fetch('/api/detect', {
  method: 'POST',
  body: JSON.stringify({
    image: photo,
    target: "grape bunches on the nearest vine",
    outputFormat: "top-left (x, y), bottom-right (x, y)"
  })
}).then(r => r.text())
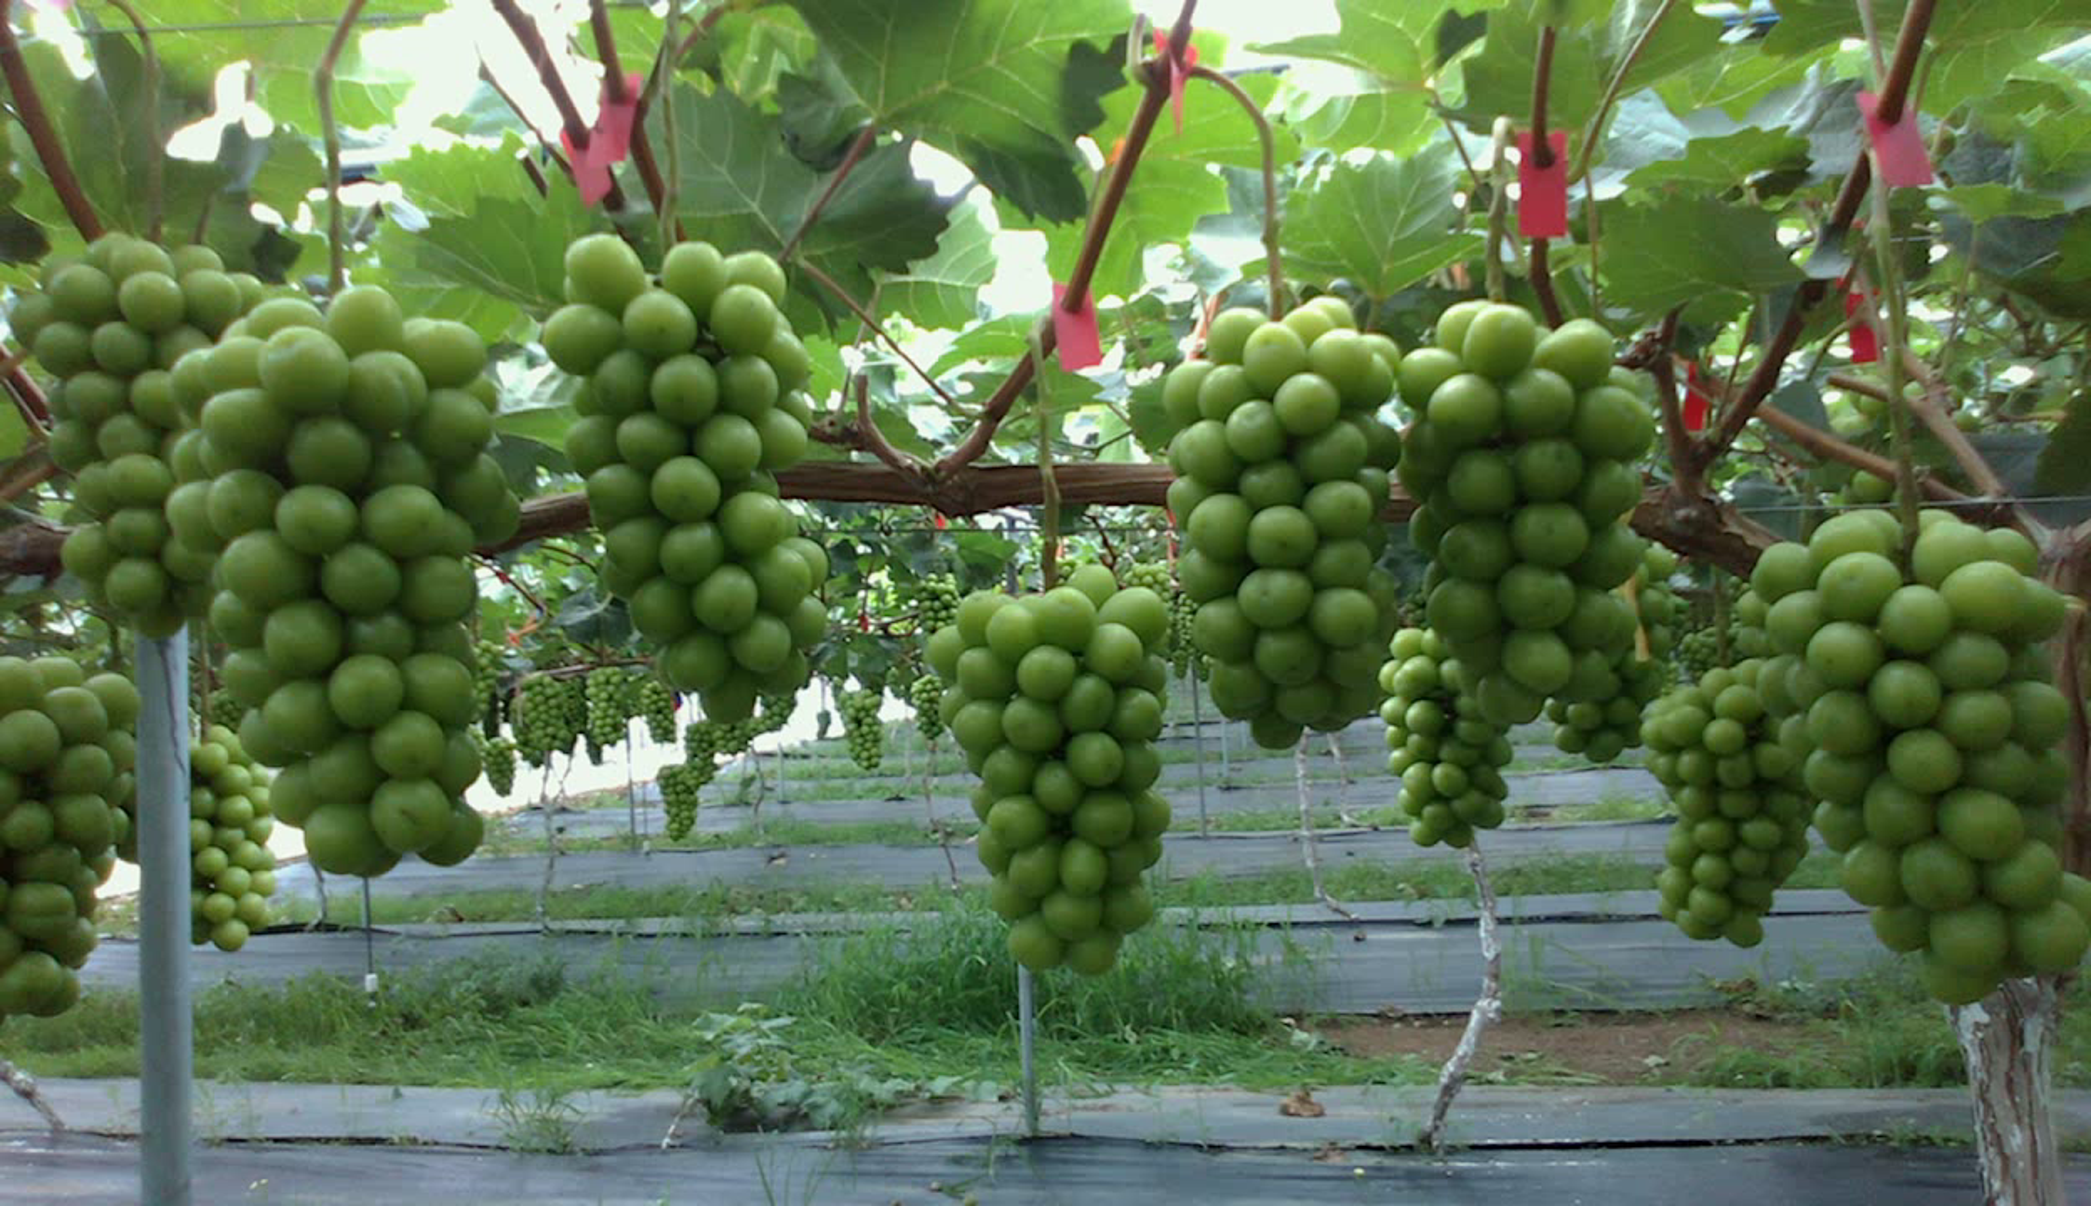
top-left (925, 564), bottom-right (1168, 977)
top-left (1394, 300), bottom-right (1660, 724)
top-left (536, 234), bottom-right (828, 729)
top-left (8, 231), bottom-right (270, 643)
top-left (1163, 295), bottom-right (1406, 749)
top-left (168, 288), bottom-right (519, 876)
top-left (1749, 506), bottom-right (2088, 1008)
top-left (2, 653), bottom-right (136, 1025)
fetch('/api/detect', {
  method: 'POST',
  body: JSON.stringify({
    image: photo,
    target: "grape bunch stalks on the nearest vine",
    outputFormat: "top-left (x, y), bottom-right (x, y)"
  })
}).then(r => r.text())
top-left (662, 0), bottom-right (684, 248)
top-left (1191, 65), bottom-right (1282, 320)
top-left (315, 0), bottom-right (367, 291)
top-left (1025, 318), bottom-right (1062, 588)
top-left (1873, 179), bottom-right (1922, 549)
top-left (1486, 114), bottom-right (1515, 298)
top-left (112, 0), bottom-right (163, 240)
